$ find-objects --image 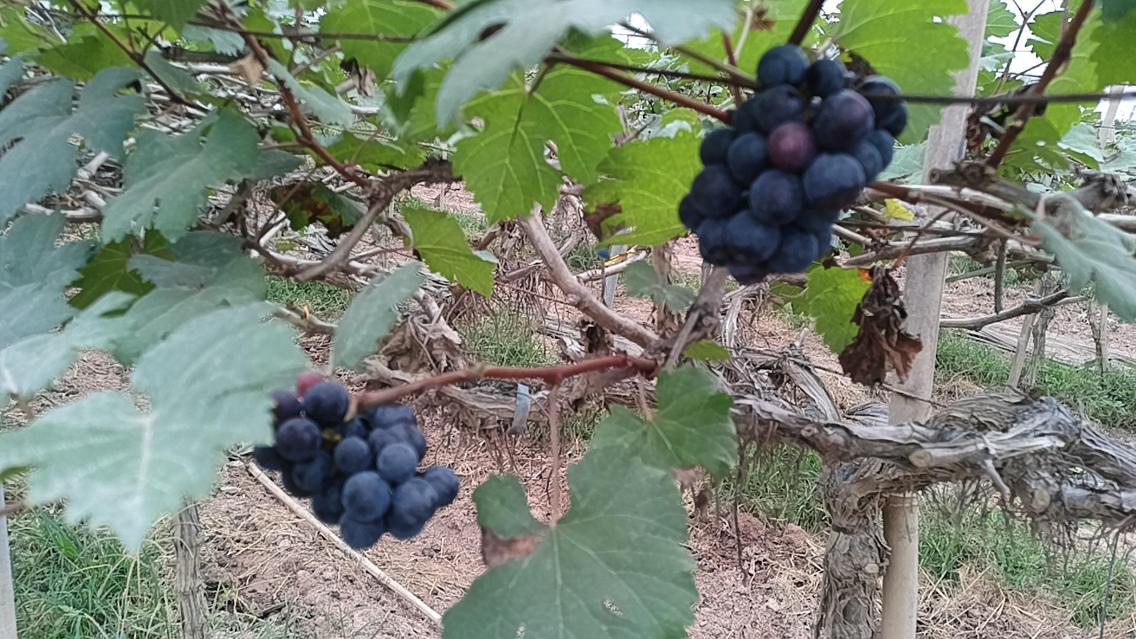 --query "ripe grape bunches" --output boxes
[679,44,907,284]
[253,373,459,548]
